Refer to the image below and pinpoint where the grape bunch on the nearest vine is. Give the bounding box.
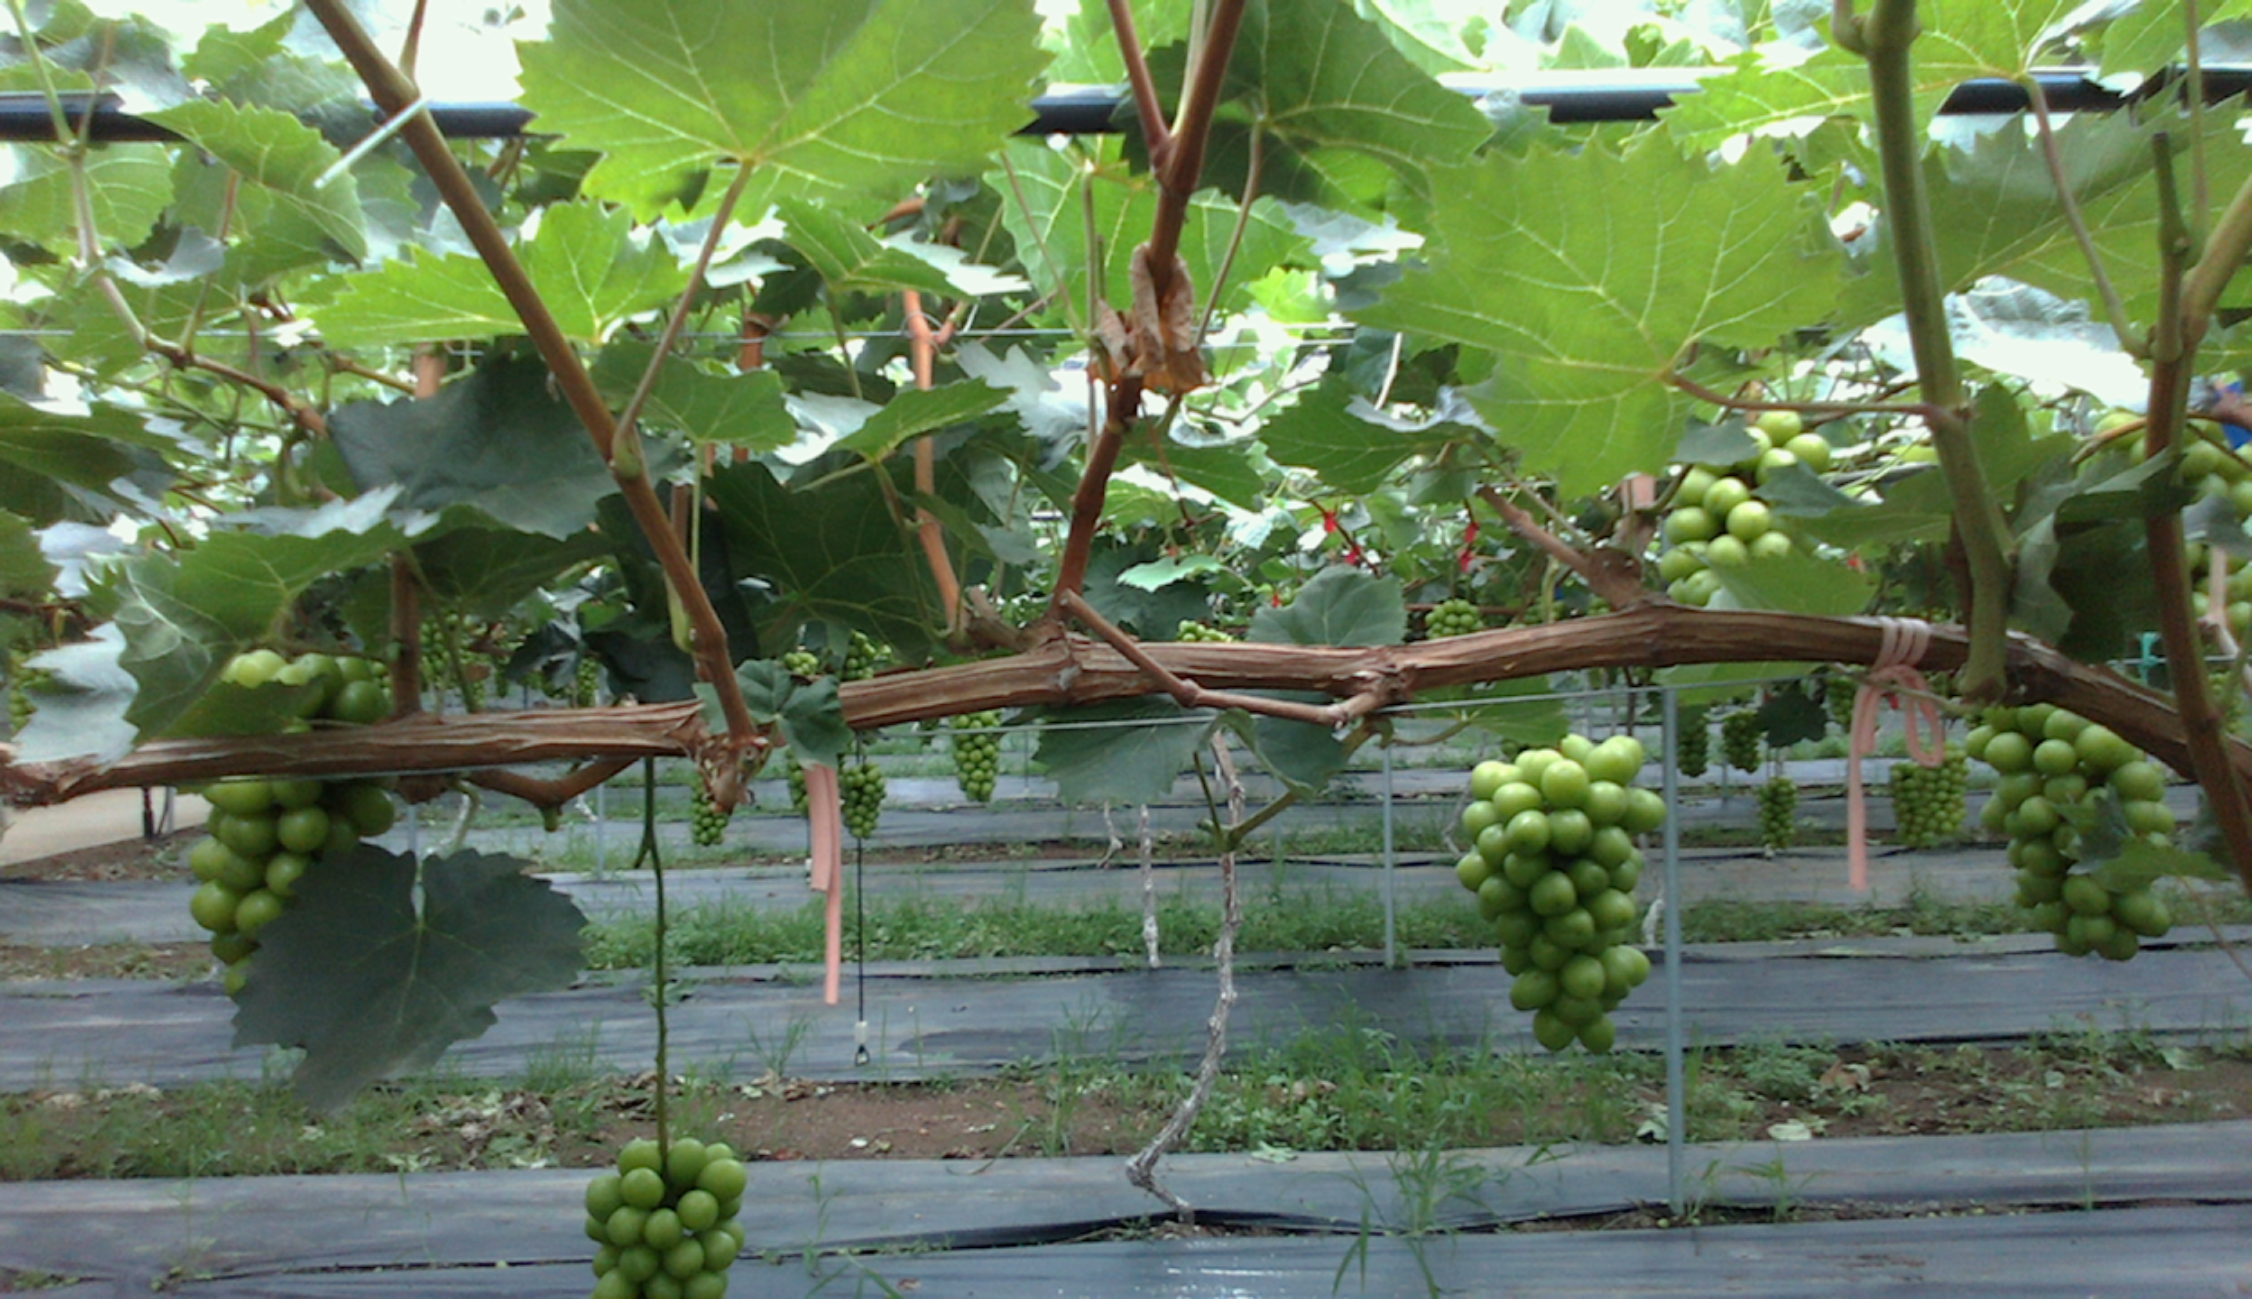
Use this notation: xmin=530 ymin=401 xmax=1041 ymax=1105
xmin=585 ymin=1138 xmax=747 ymax=1297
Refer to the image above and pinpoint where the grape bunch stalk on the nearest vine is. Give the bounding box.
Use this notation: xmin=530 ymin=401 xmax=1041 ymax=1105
xmin=632 ymin=756 xmax=669 ymax=1173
